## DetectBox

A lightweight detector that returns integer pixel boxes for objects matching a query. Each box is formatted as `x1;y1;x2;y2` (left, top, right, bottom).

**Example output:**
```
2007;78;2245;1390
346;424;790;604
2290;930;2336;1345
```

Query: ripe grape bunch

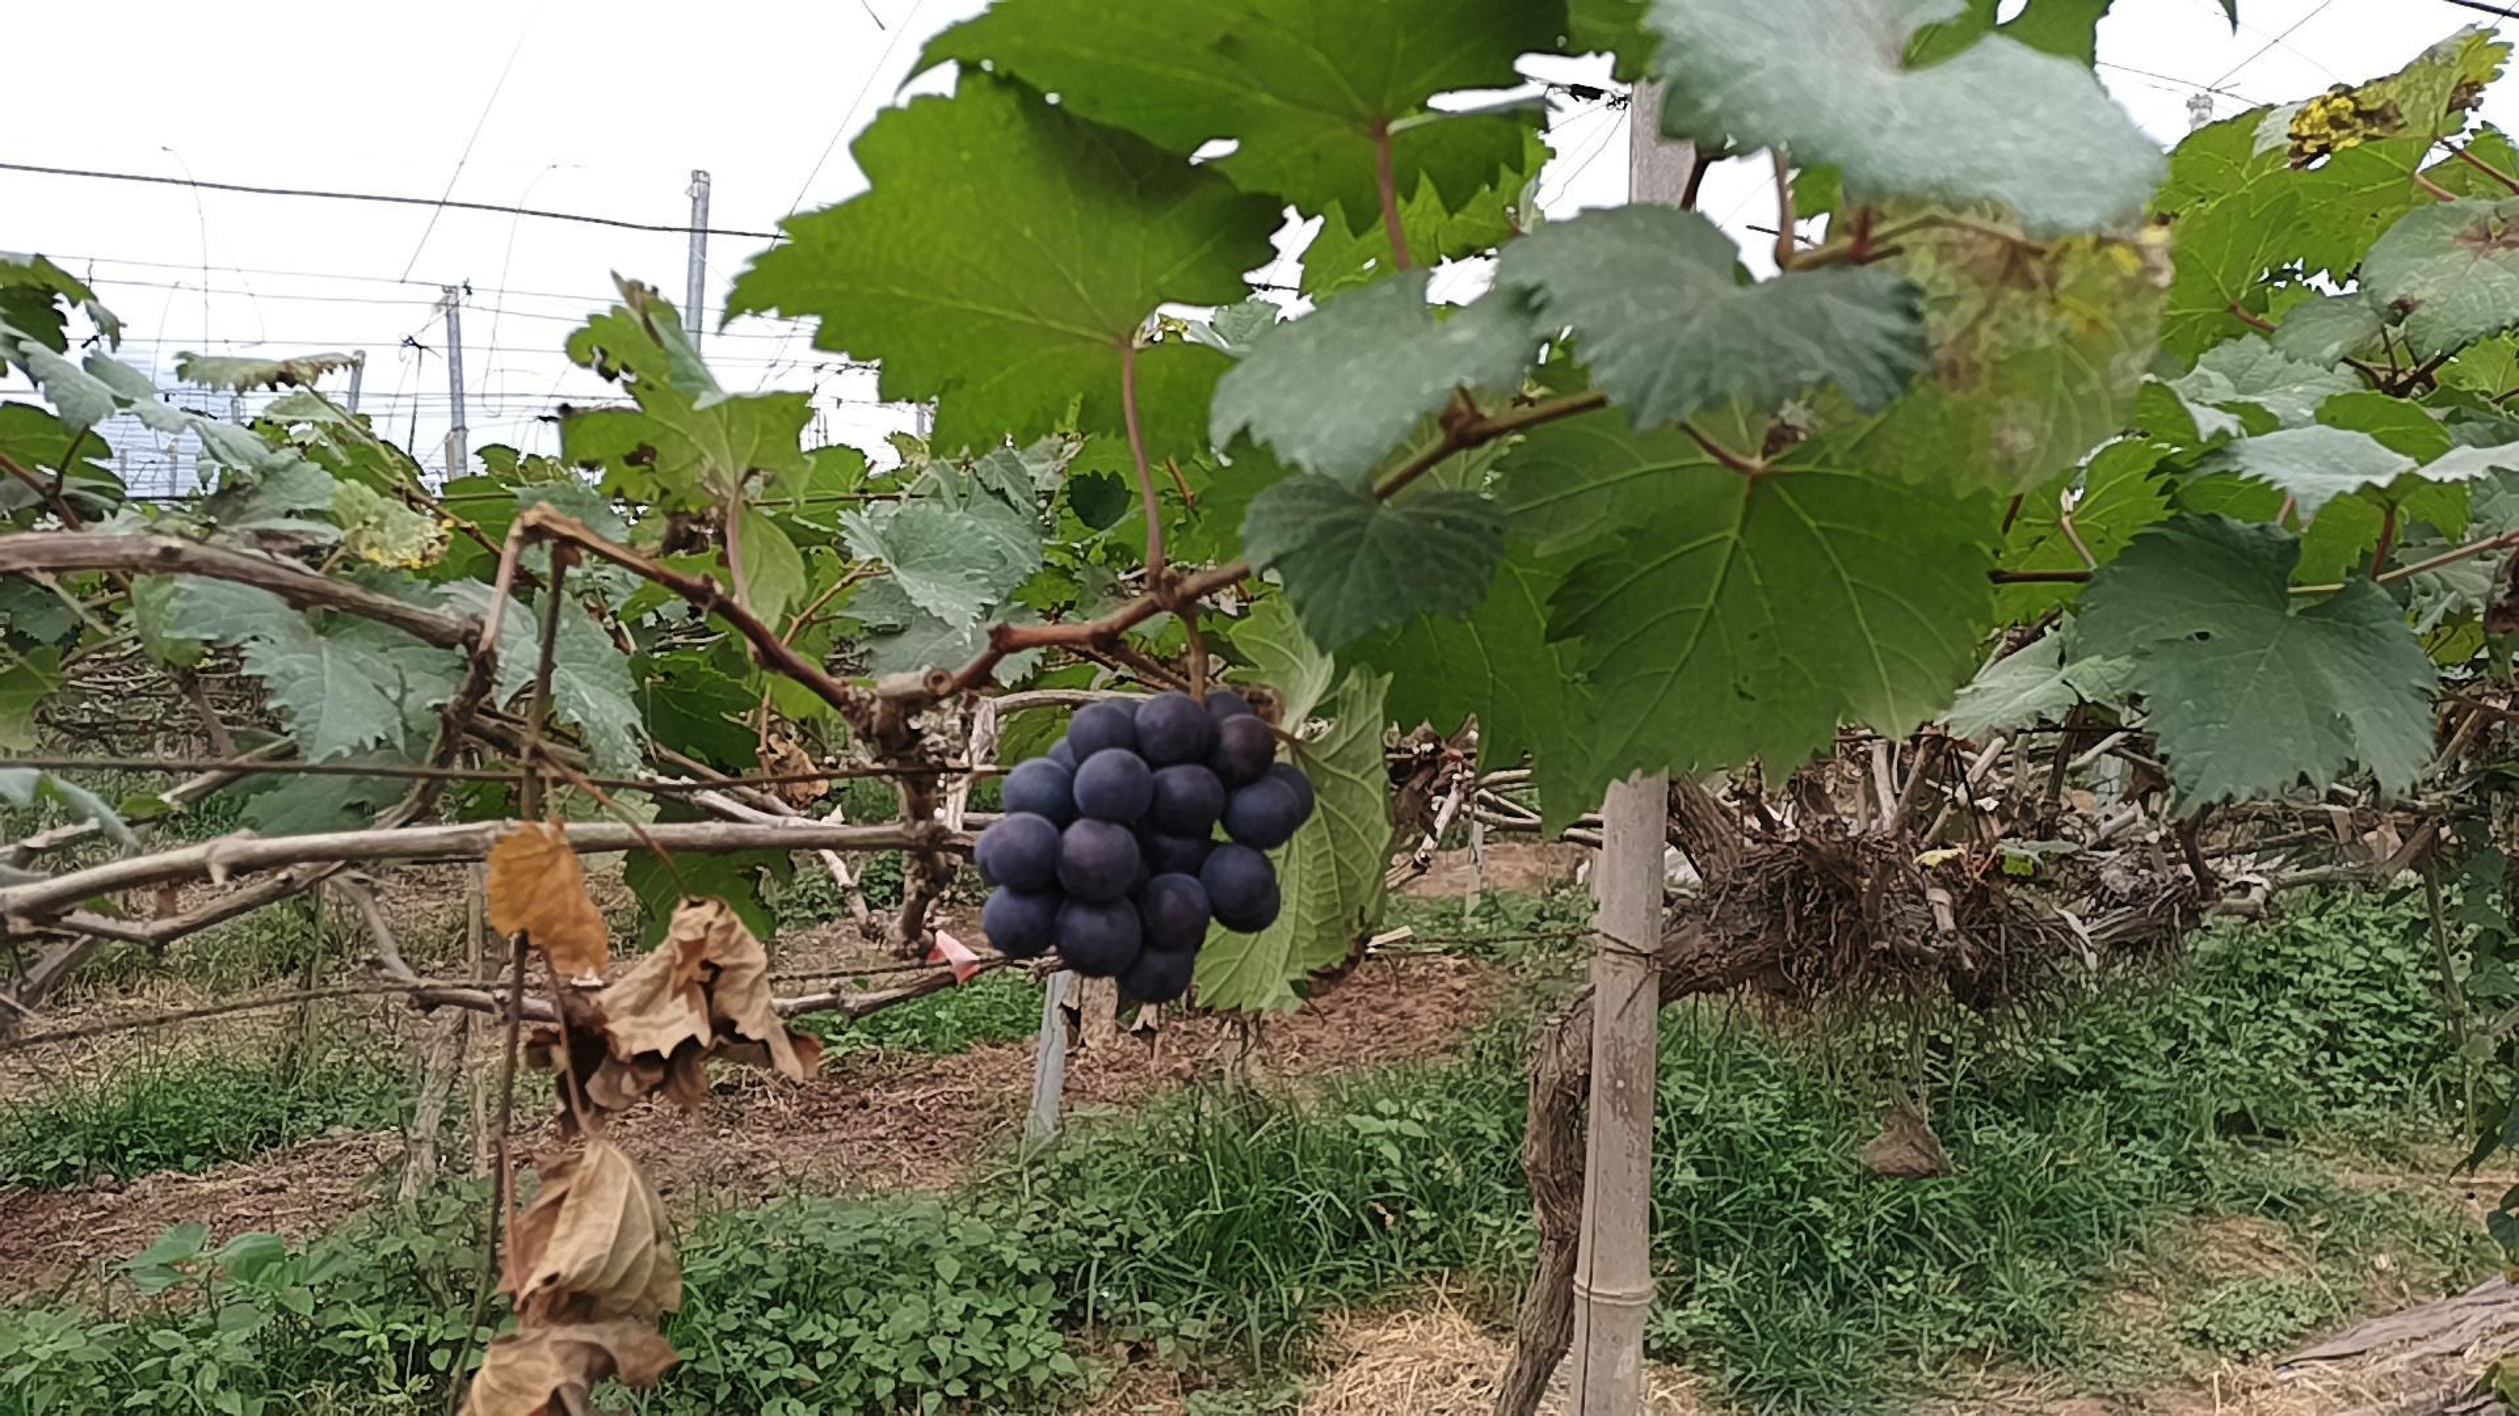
977;691;1315;1006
